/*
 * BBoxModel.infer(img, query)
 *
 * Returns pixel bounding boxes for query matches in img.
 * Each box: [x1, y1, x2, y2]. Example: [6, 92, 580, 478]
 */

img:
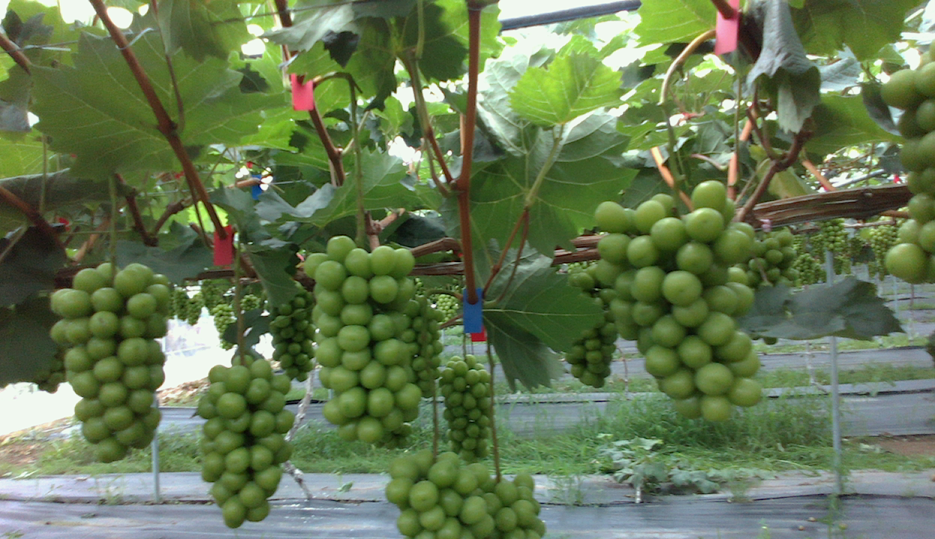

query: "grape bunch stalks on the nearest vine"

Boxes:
[659, 28, 717, 214]
[311, 72, 366, 247]
[418, 288, 463, 454]
[108, 176, 116, 278]
[234, 240, 243, 365]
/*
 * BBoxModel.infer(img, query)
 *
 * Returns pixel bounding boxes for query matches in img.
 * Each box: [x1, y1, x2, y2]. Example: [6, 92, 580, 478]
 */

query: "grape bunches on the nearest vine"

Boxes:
[304, 236, 422, 444]
[594, 181, 763, 421]
[49, 262, 170, 462]
[880, 46, 934, 285]
[481, 473, 545, 538]
[198, 355, 294, 528]
[386, 448, 494, 538]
